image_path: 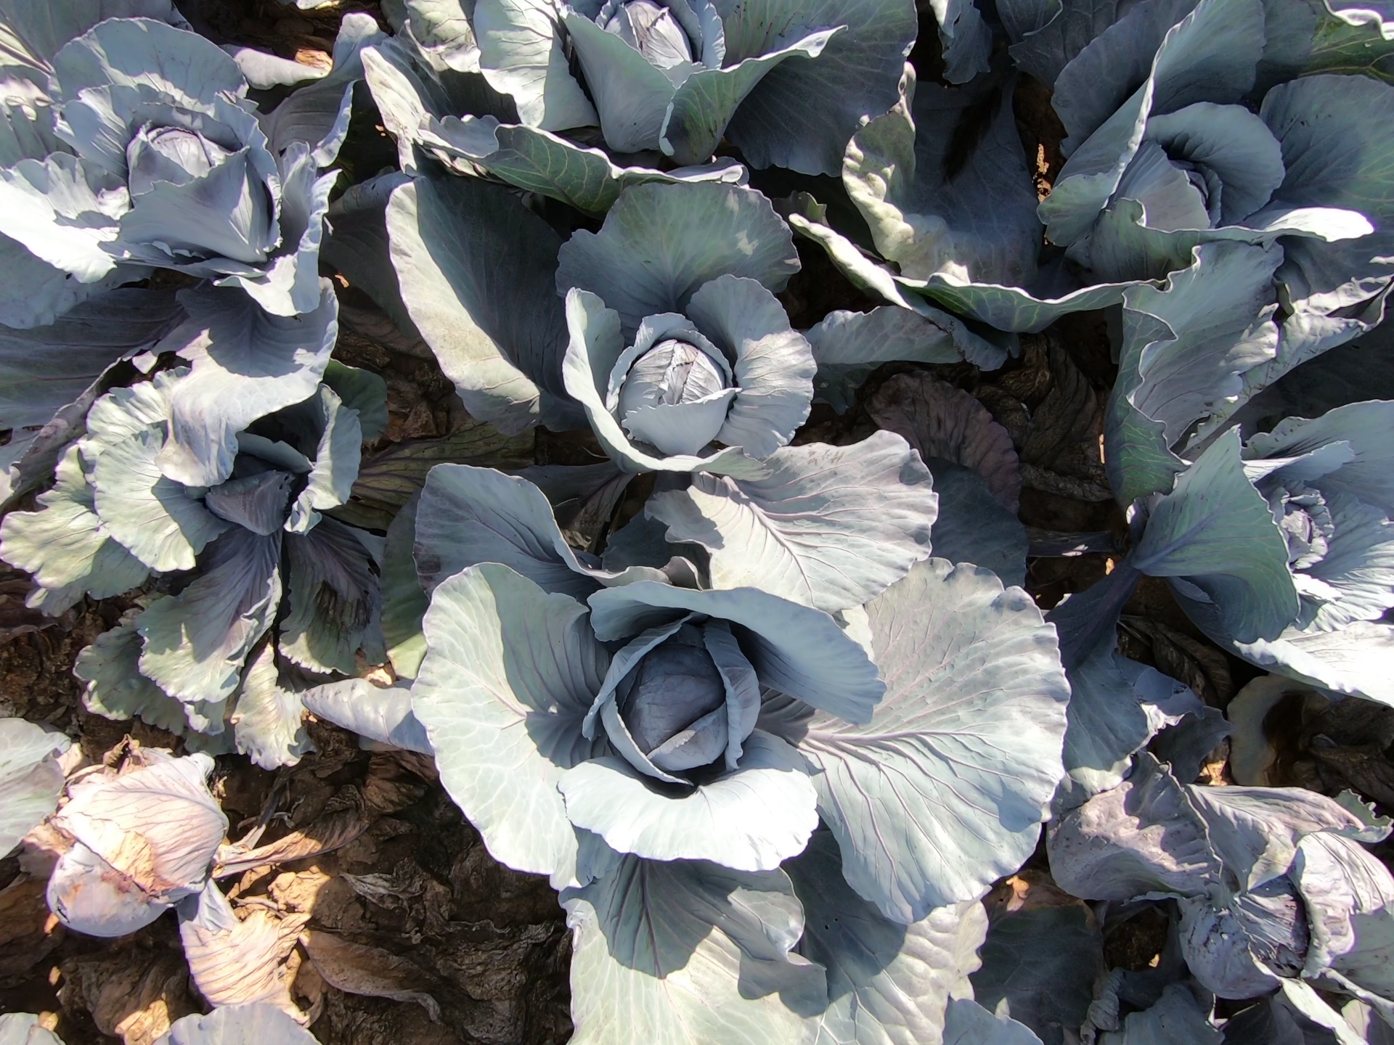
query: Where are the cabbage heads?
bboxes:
[1183,849,1318,996]
[1106,155,1206,246]
[204,456,286,531]
[604,633,751,771]
[49,802,213,935]
[129,128,263,254]
[597,3,694,125]
[1207,487,1316,573]
[619,337,727,454]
